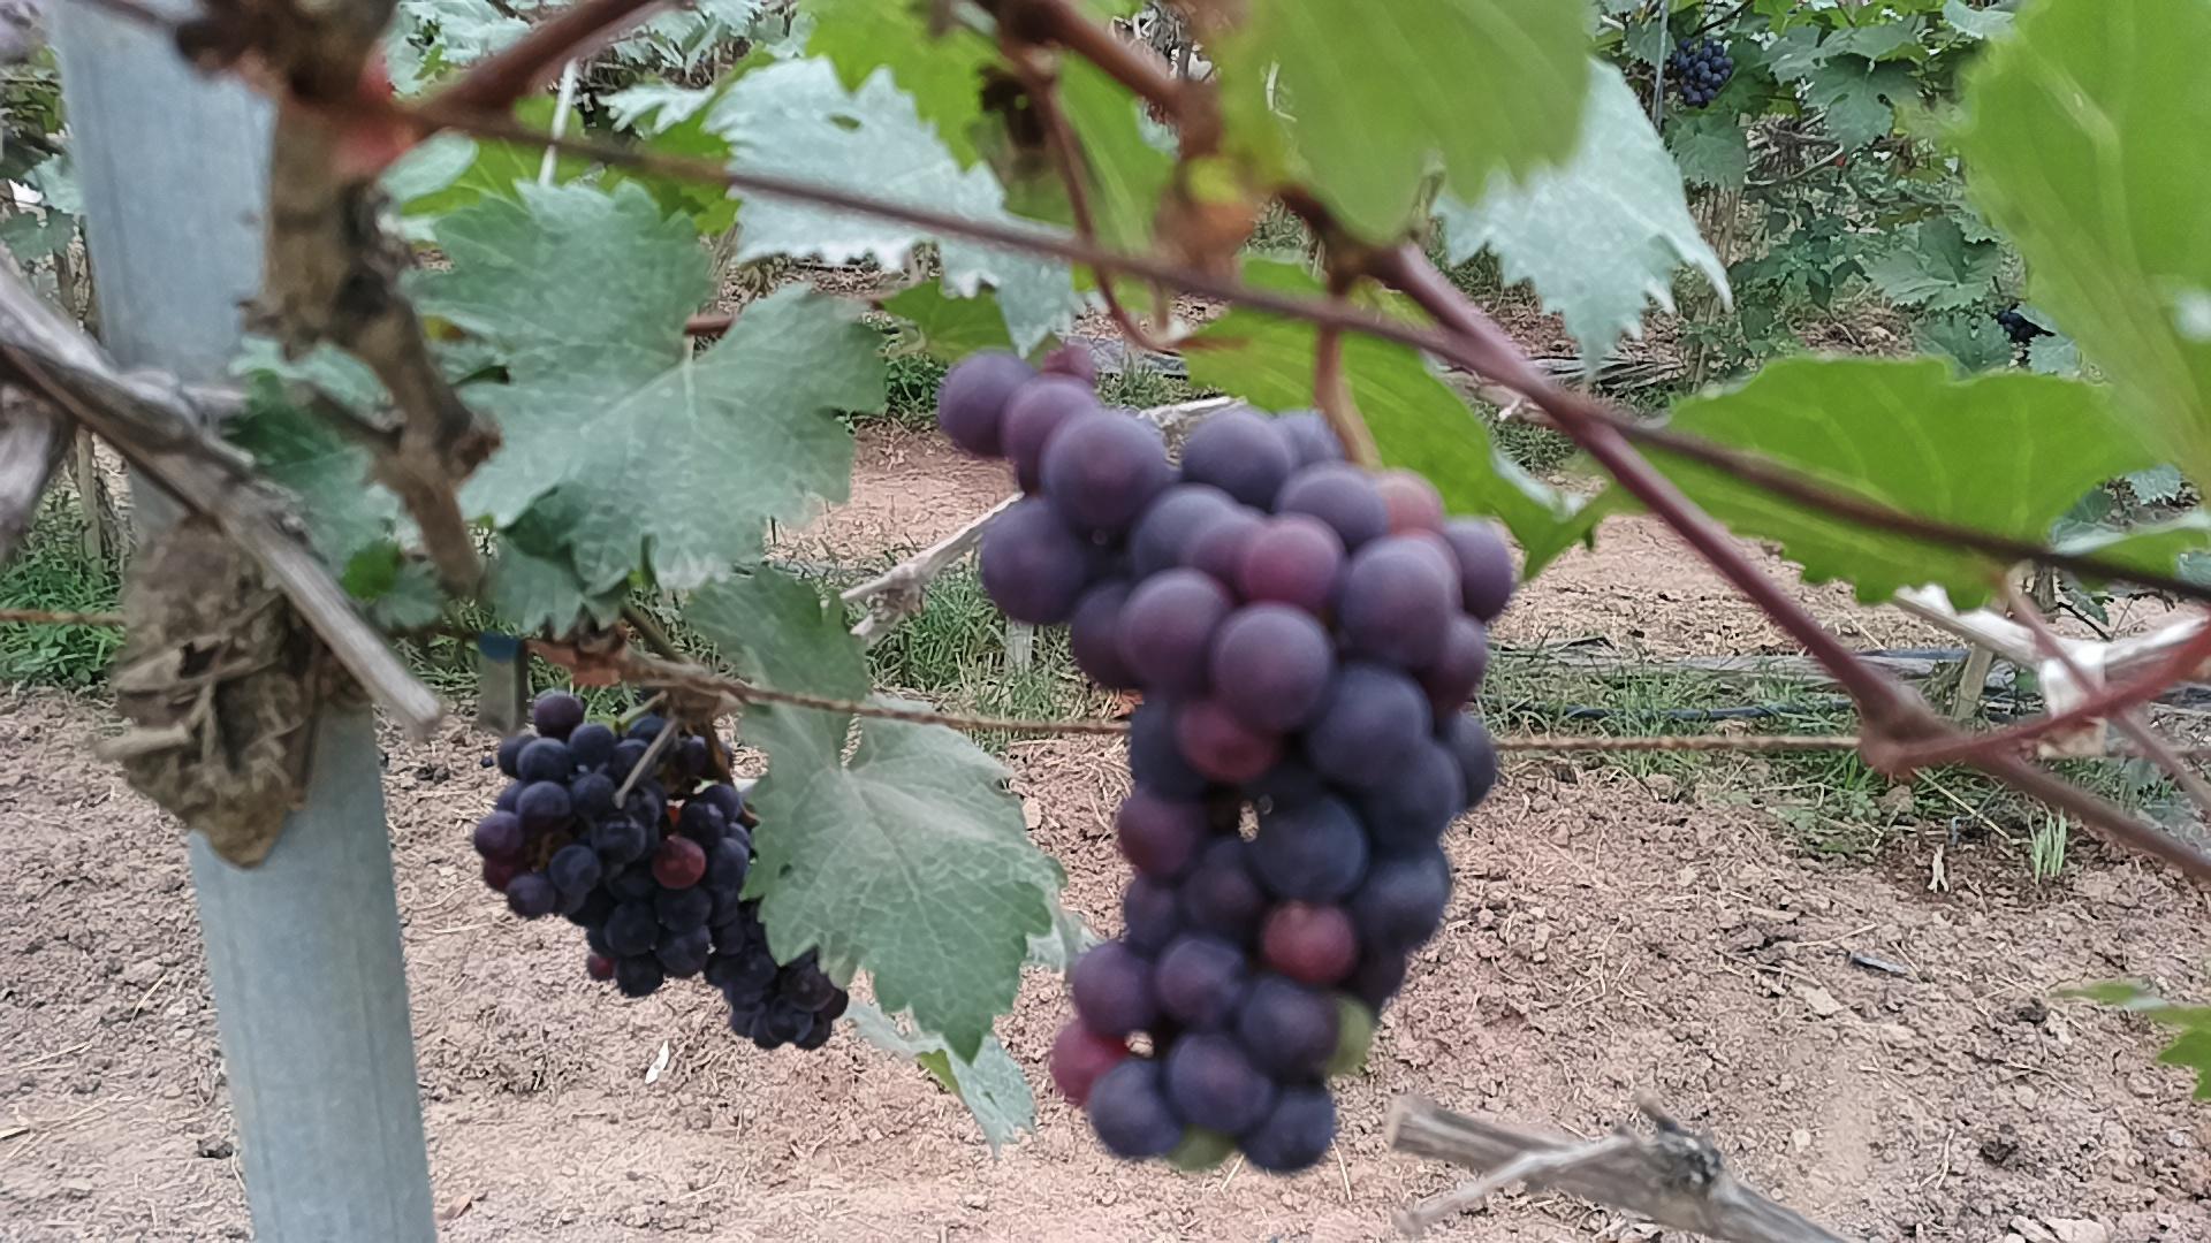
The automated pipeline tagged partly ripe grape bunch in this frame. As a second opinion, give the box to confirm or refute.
[940,345,1517,1172]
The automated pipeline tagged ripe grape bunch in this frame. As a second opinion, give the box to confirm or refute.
[472,692,848,1048]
